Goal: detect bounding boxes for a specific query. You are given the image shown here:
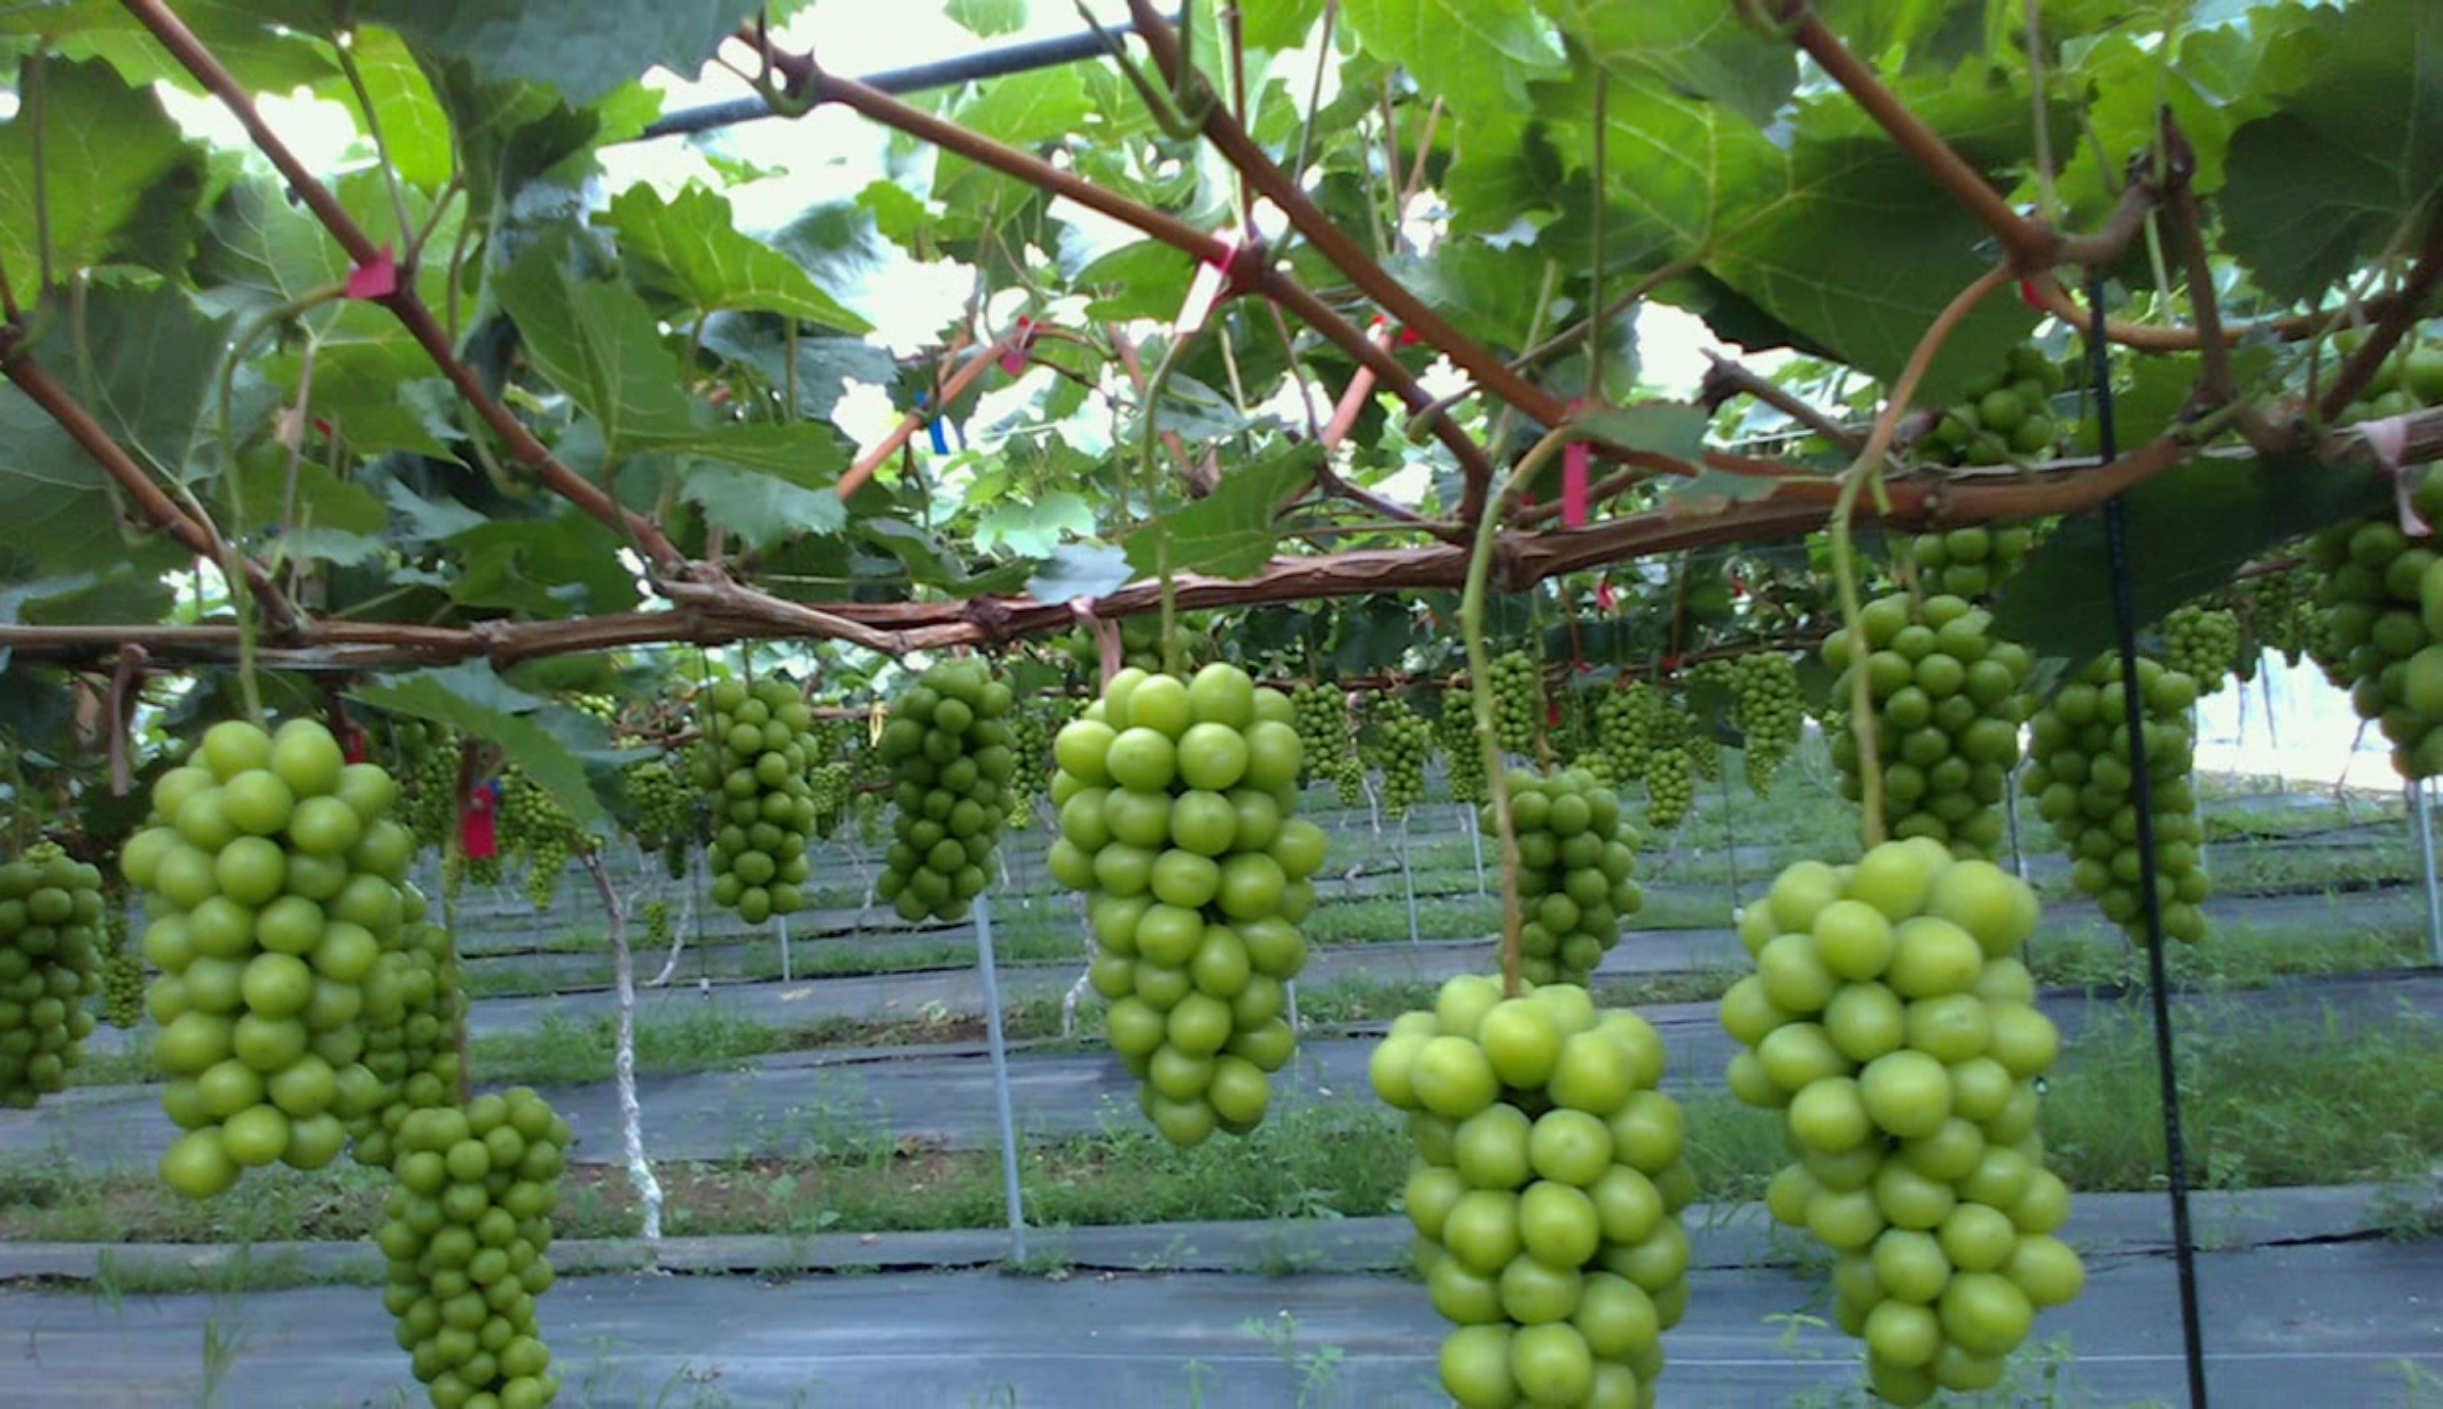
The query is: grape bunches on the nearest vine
[1368,973,1695,1407]
[1049,661,1327,1147]
[1719,836,2083,1407]
[121,716,413,1198]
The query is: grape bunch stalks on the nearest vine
[1452,425,1578,998]
[1143,333,1190,681]
[217,280,345,732]
[1830,264,2008,849]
